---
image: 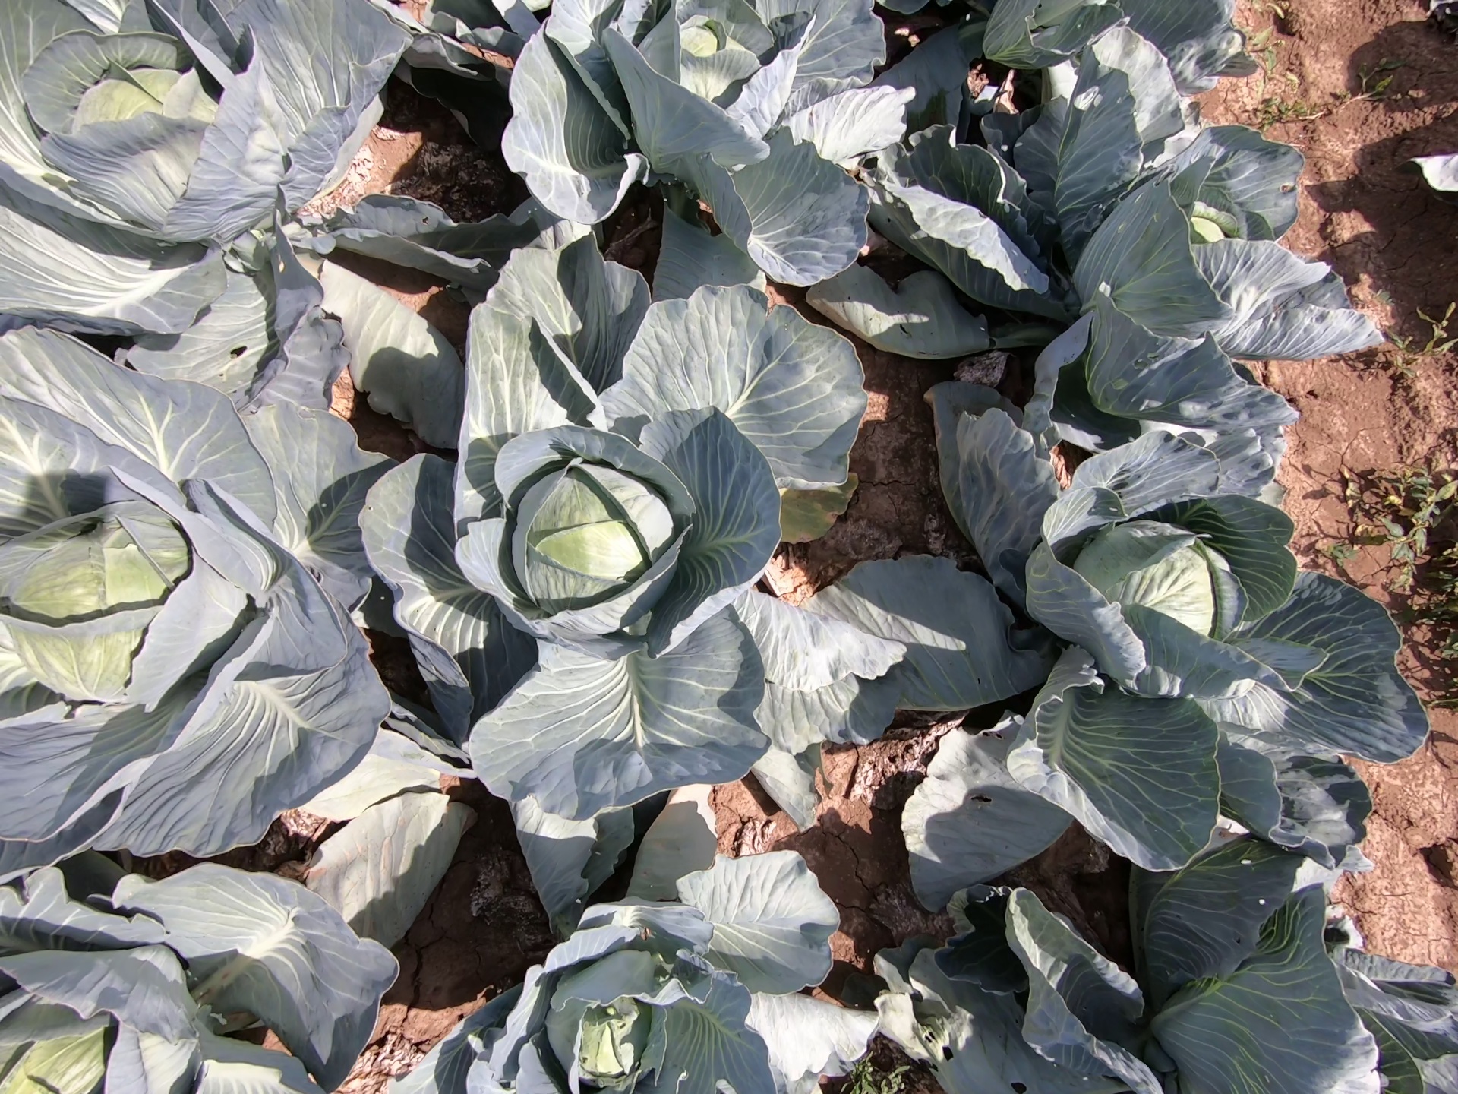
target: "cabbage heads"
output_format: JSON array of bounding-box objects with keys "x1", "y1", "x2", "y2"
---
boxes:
[
  {"x1": 7, "y1": 525, "x2": 247, "y2": 702},
  {"x1": 2, "y1": 962, "x2": 201, "y2": 1090},
  {"x1": 644, "y1": 24, "x2": 765, "y2": 140},
  {"x1": 1071, "y1": 520, "x2": 1236, "y2": 663},
  {"x1": 1165, "y1": 206, "x2": 1237, "y2": 291},
  {"x1": 68, "y1": 58, "x2": 284, "y2": 240},
  {"x1": 553, "y1": 966, "x2": 662, "y2": 1089},
  {"x1": 510, "y1": 463, "x2": 677, "y2": 629}
]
